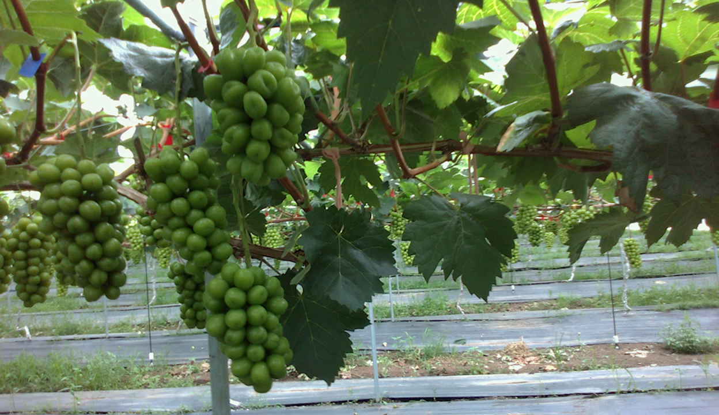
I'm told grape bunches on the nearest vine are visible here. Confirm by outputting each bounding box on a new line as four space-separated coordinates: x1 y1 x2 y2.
143 145 234 275
28 154 127 303
203 47 304 187
203 262 293 393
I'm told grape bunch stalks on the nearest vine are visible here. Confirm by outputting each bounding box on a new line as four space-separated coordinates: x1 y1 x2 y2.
245 1 258 47
174 41 191 162
230 175 252 267
44 31 85 160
